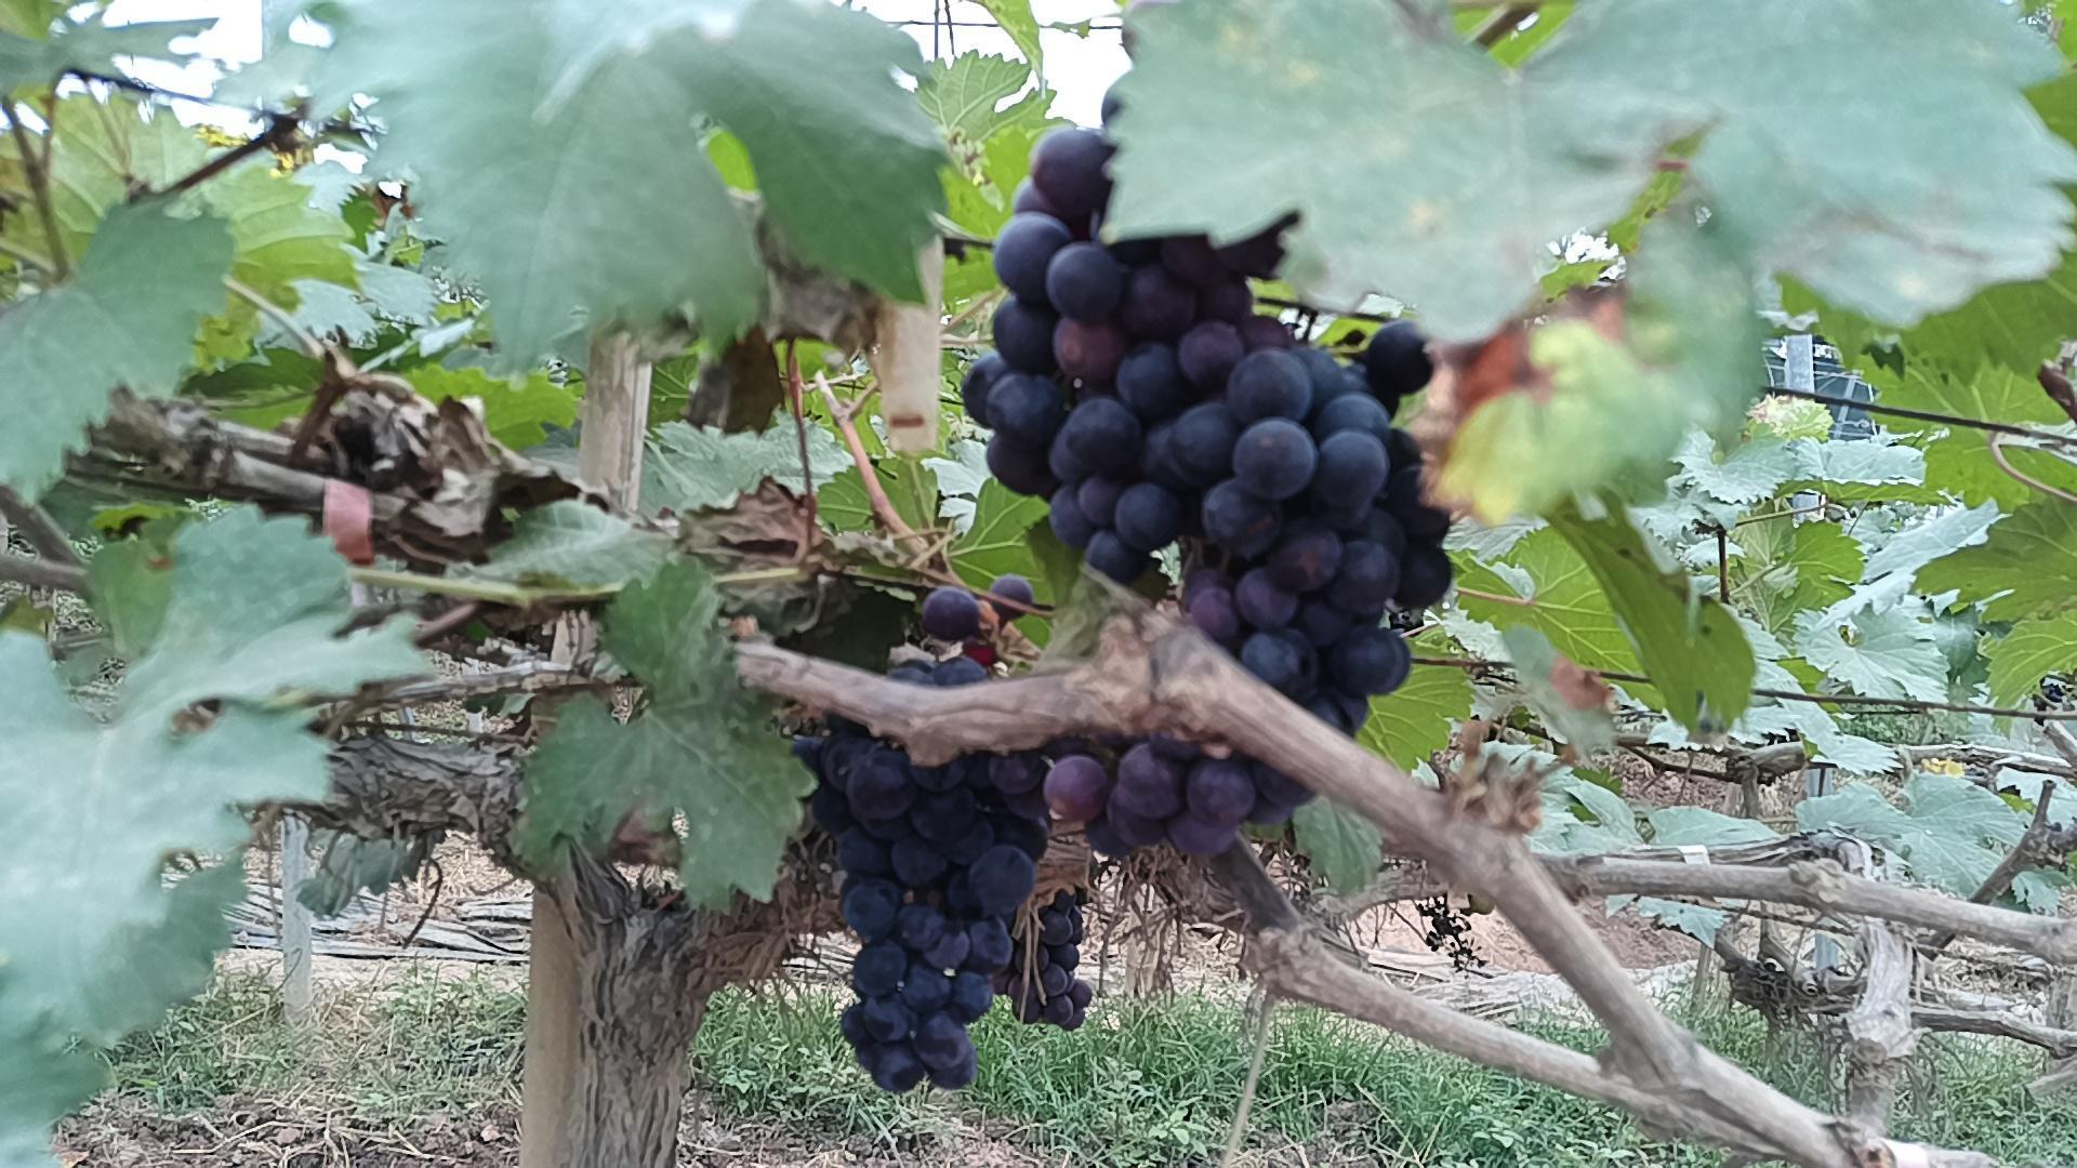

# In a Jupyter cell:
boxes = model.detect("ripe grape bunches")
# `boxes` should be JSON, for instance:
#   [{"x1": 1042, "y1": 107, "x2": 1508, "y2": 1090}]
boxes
[
  {"x1": 794, "y1": 576, "x2": 1095, "y2": 1091},
  {"x1": 962, "y1": 0, "x2": 1452, "y2": 857}
]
